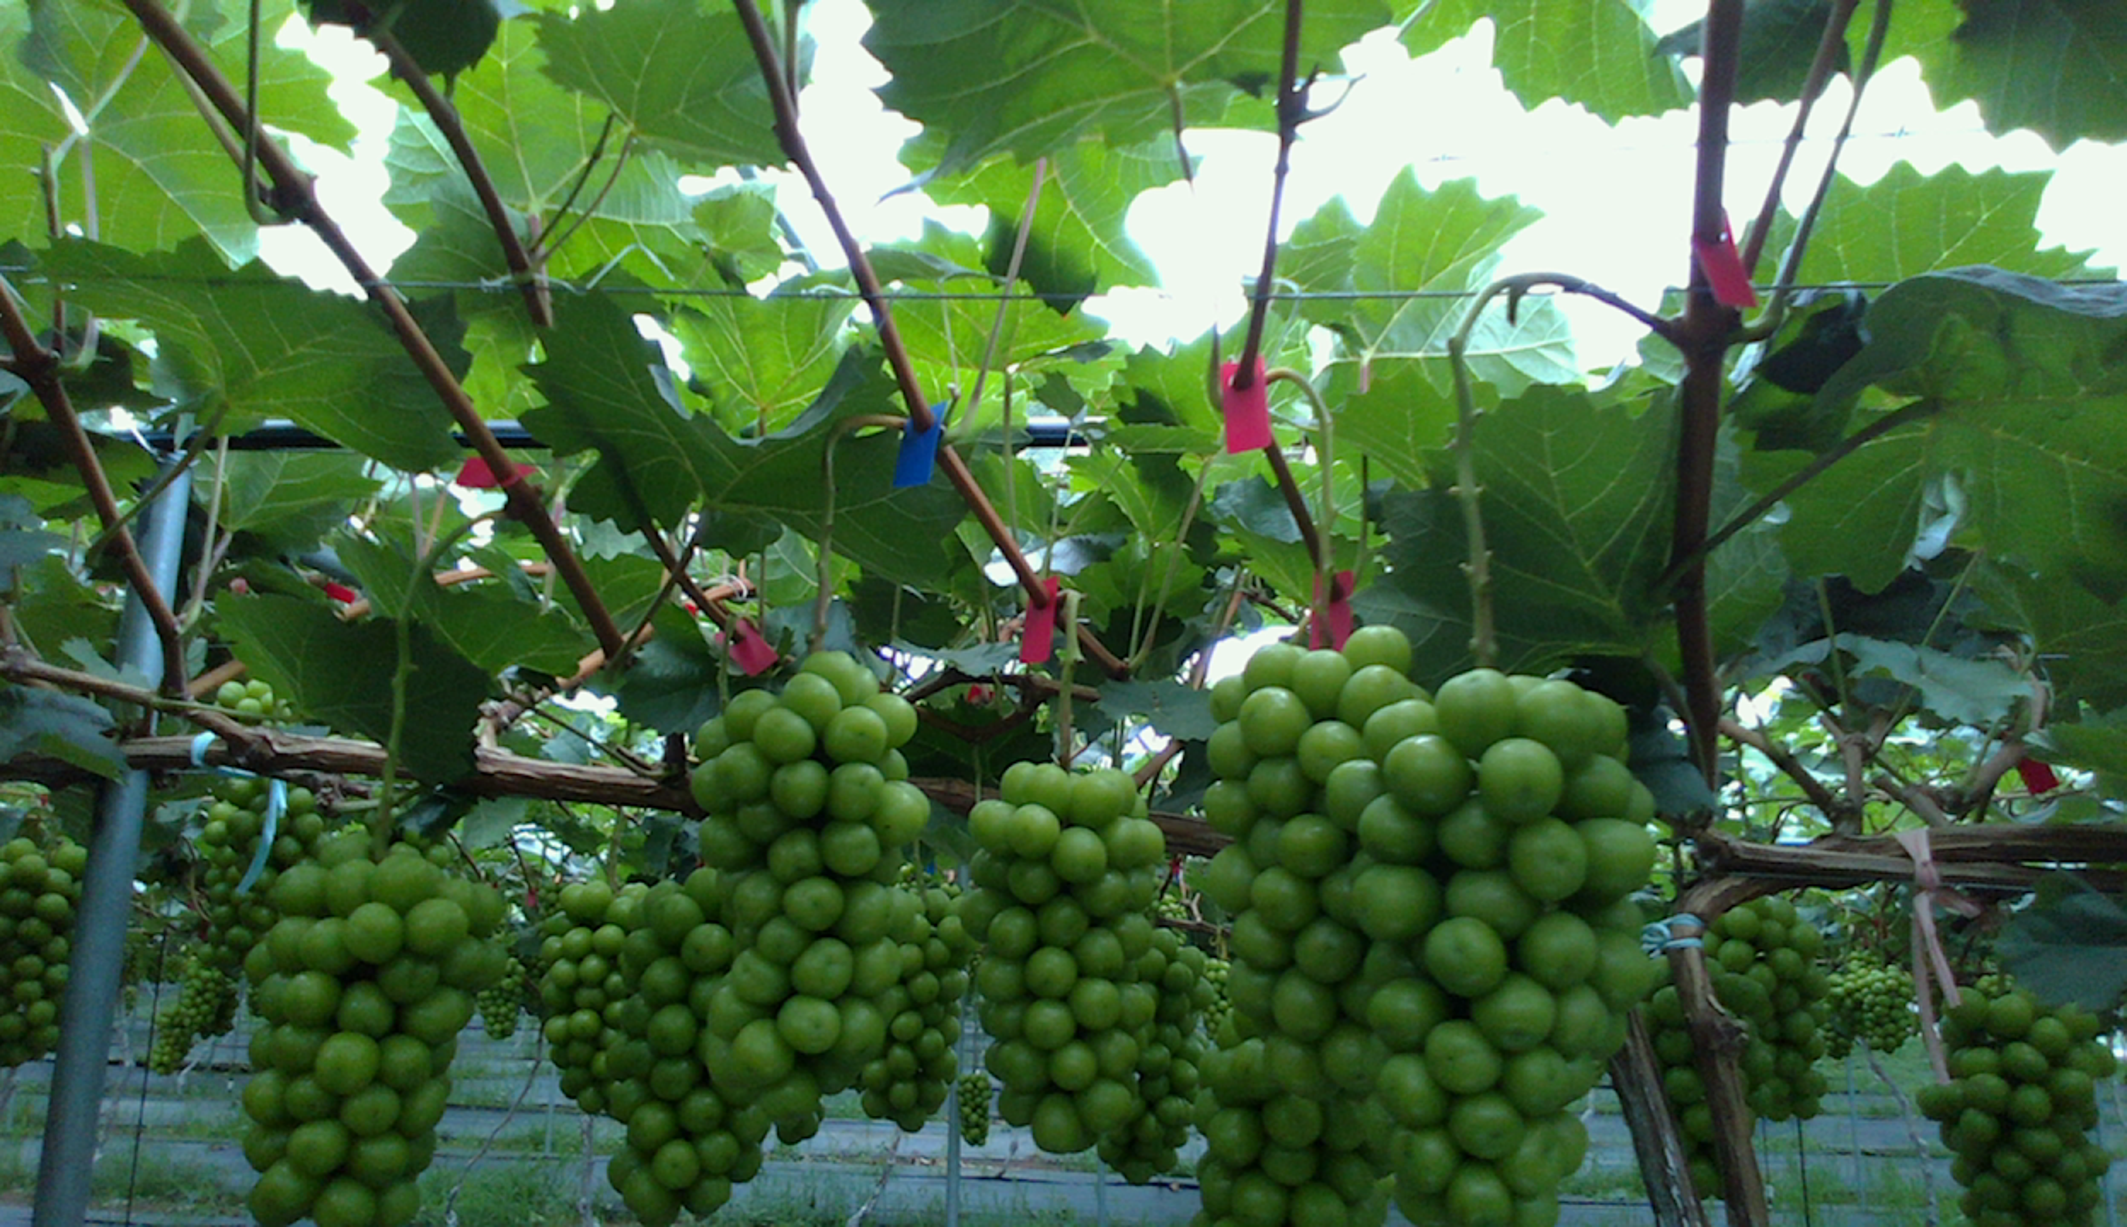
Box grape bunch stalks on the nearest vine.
[1266,366,1334,649]
[806,414,905,653]
[1442,273,1686,668]
[372,510,503,864]
[1058,588,1079,777]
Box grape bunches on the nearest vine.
[690,649,931,1126]
[1326,666,1660,1225]
[960,760,1166,1154]
[1188,625,1432,1225]
[242,832,508,1225]
[605,866,770,1225]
